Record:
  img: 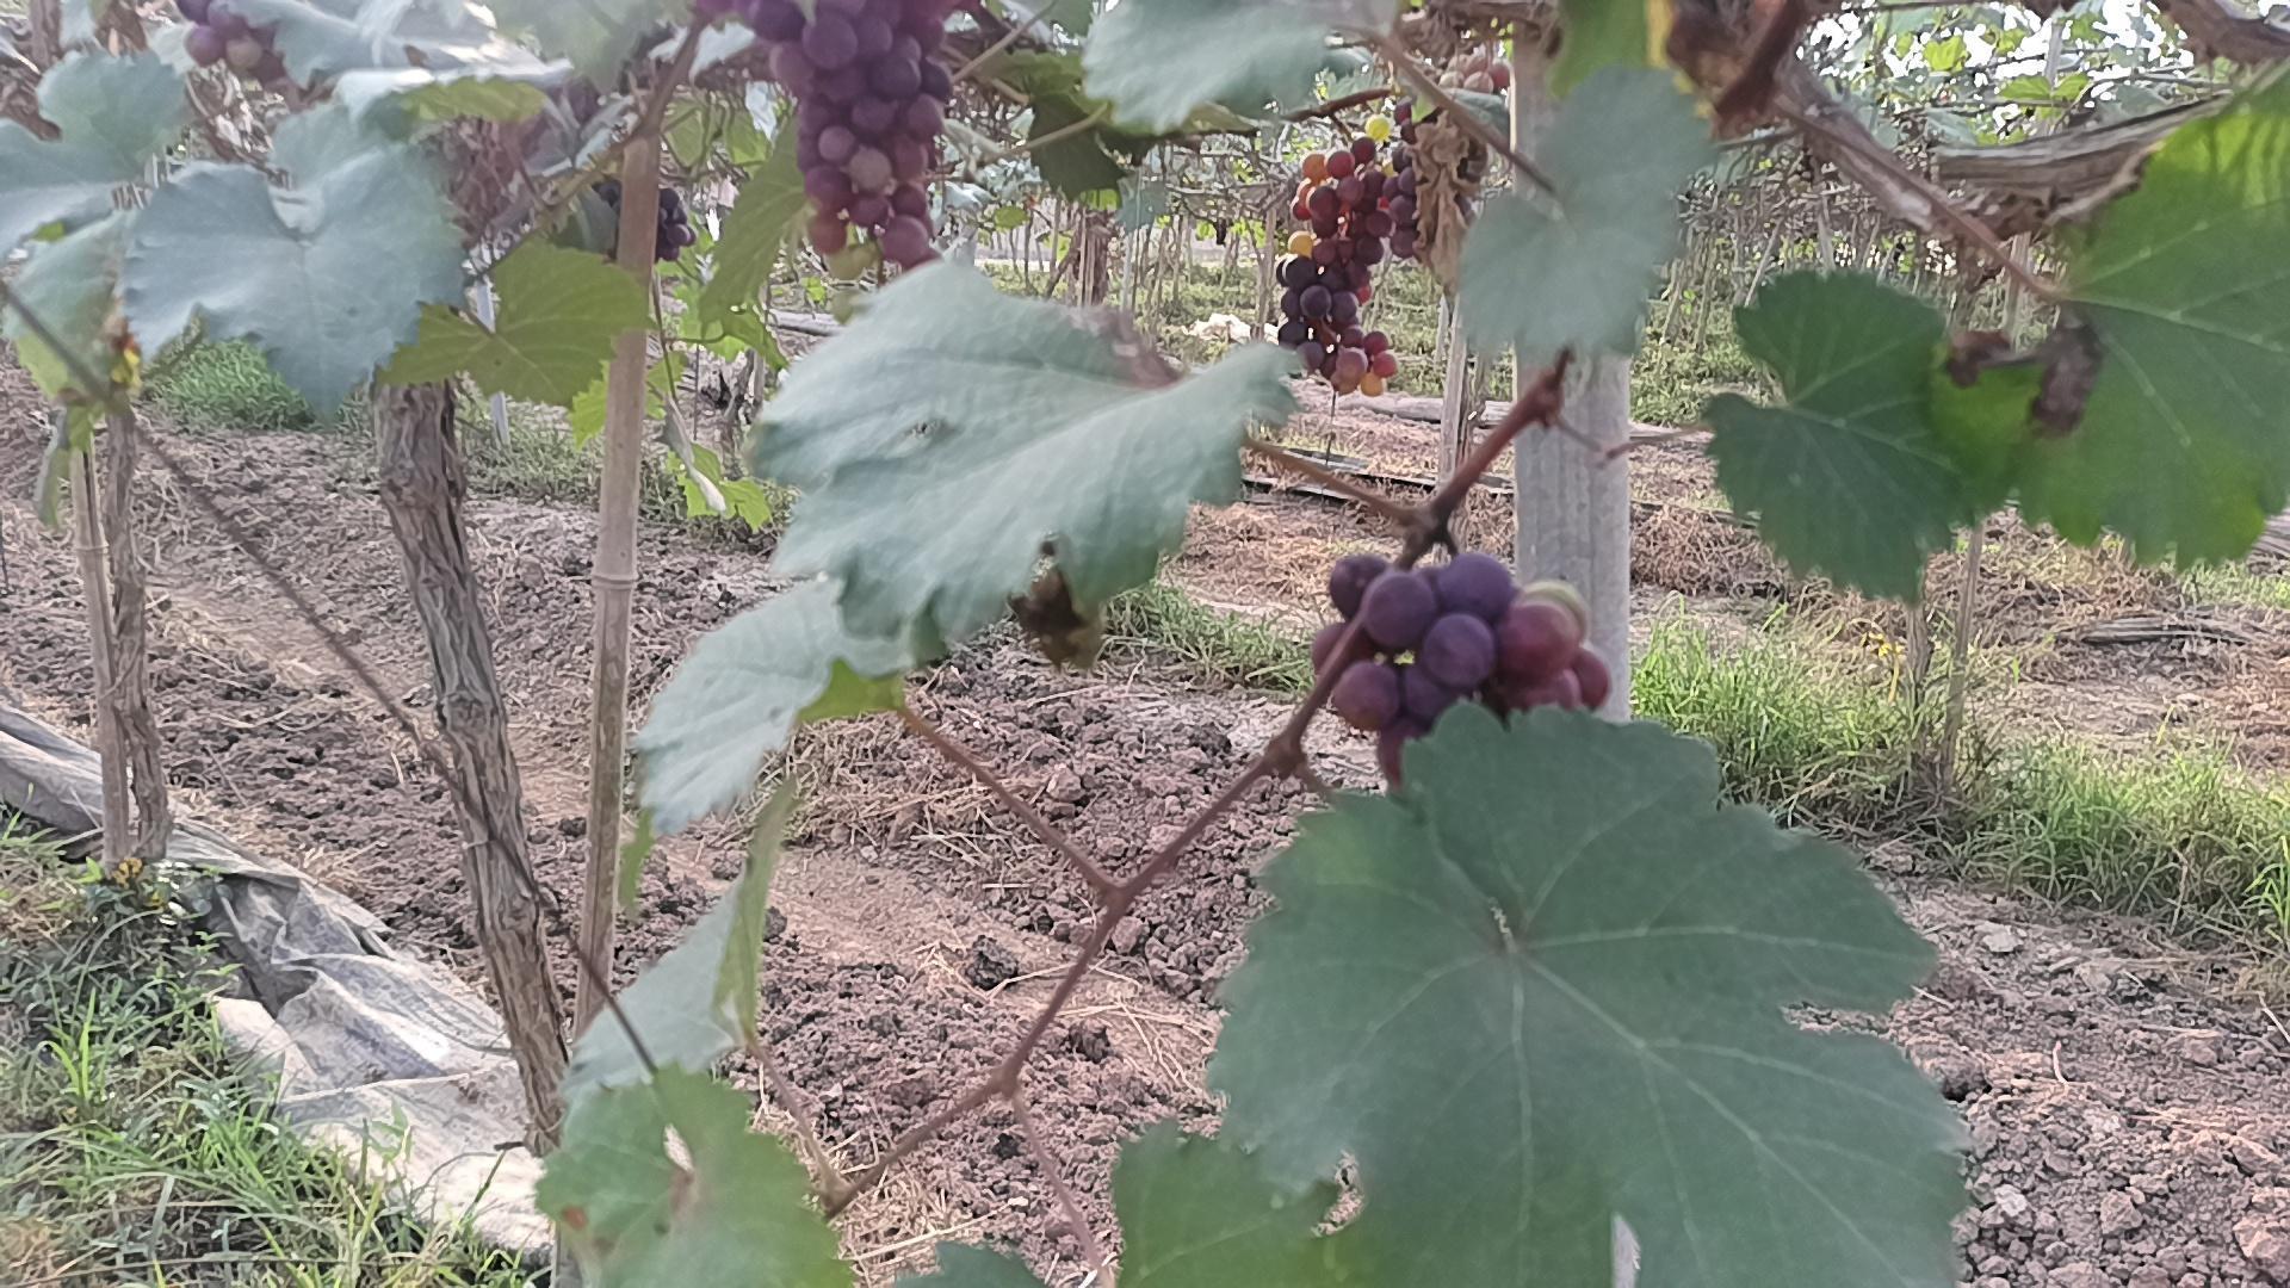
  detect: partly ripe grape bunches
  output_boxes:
[694,0,965,281]
[1274,114,1399,396]
[1382,54,1511,258]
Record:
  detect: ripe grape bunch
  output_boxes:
[1312,553,1613,789]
